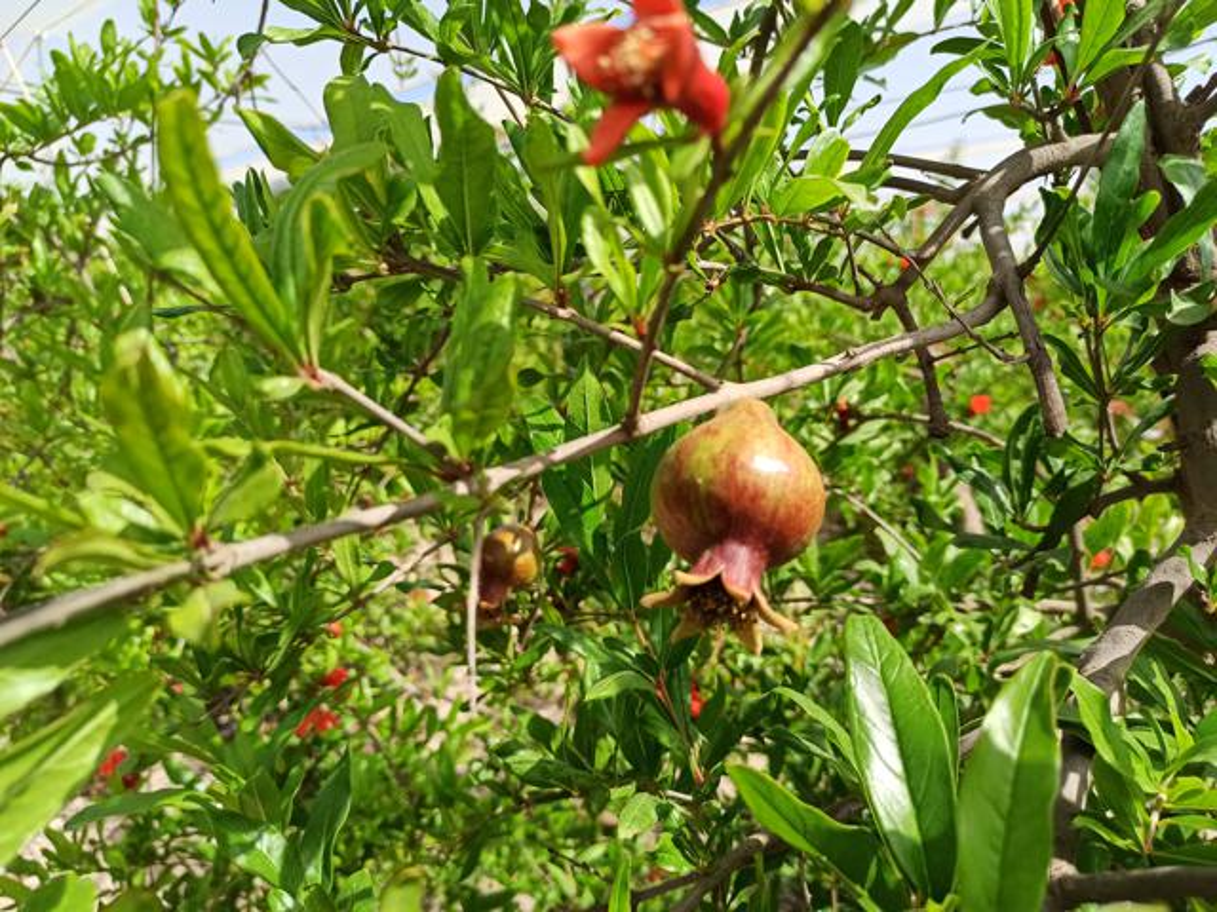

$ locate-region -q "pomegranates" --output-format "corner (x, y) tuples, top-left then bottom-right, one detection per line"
(475, 522), (542, 625)
(637, 395), (827, 661)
